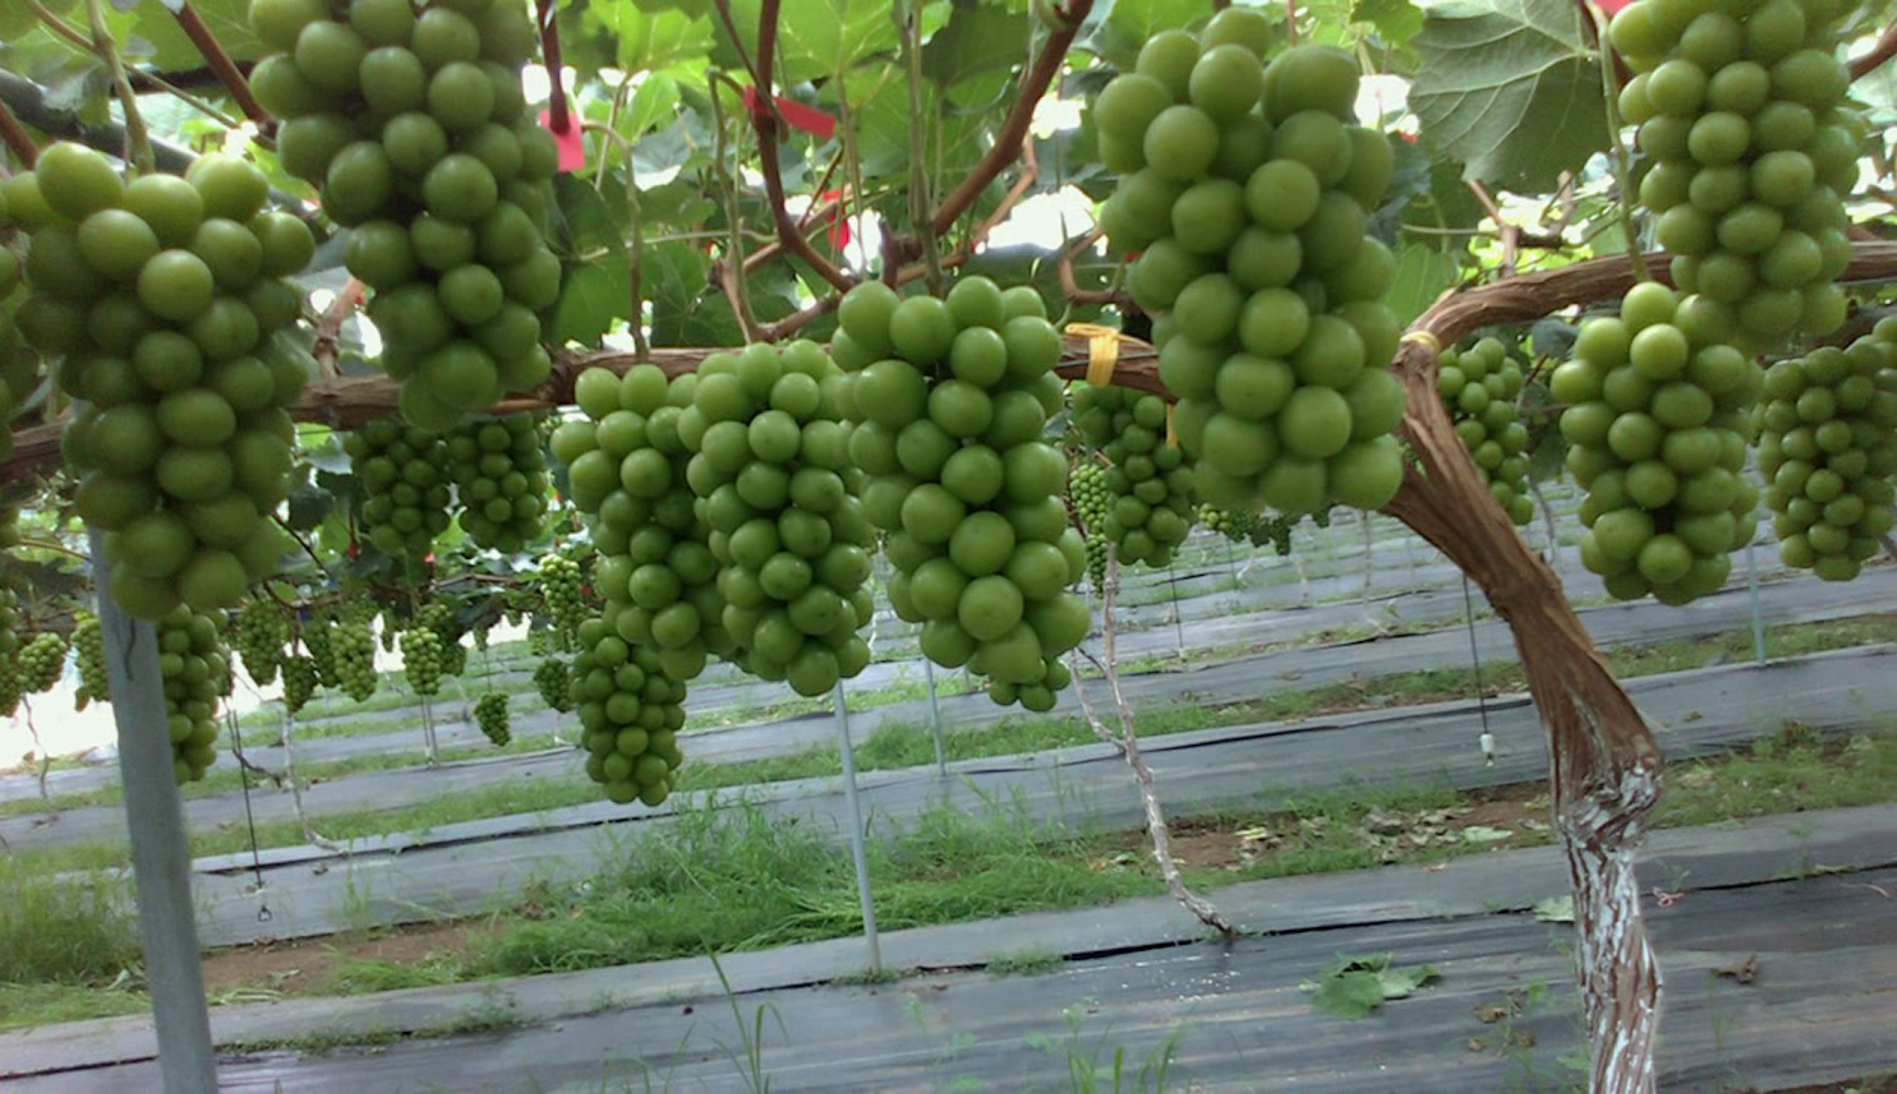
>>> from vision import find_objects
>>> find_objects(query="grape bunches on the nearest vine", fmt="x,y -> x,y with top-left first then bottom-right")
2,140 -> 318,620
1753,342 -> 1895,582
1549,281 -> 1762,611
251,0 -> 562,436
1610,0 -> 1871,353
547,365 -> 733,682
831,275 -> 1088,679
1091,9 -> 1408,507
678,339 -> 876,700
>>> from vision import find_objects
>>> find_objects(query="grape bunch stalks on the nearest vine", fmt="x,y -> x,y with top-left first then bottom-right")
85,0 -> 155,175
1581,3 -> 1648,280
1815,337 -> 1826,346
892,2 -> 942,296
707,71 -> 762,342
1211,0 -> 1230,9
582,122 -> 648,362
